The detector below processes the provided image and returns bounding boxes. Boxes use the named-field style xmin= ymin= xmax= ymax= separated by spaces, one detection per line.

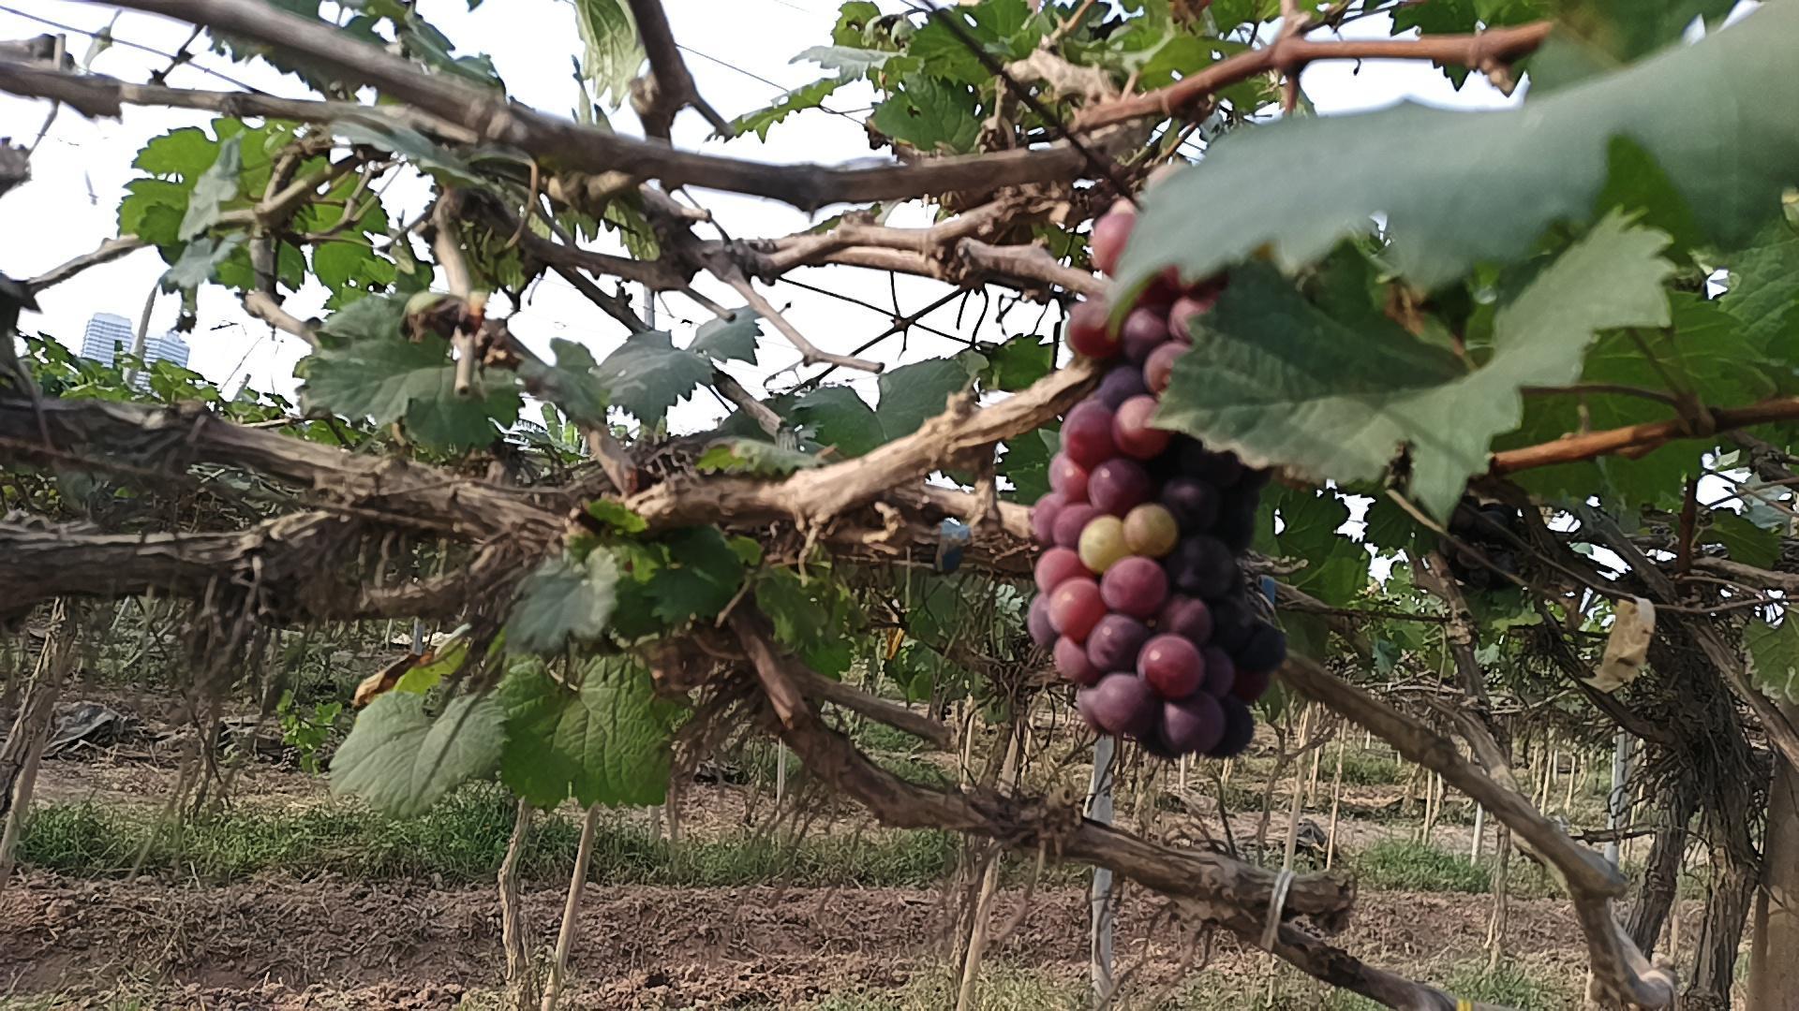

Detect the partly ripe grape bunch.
xmin=1028 ymin=204 xmax=1285 ymax=760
